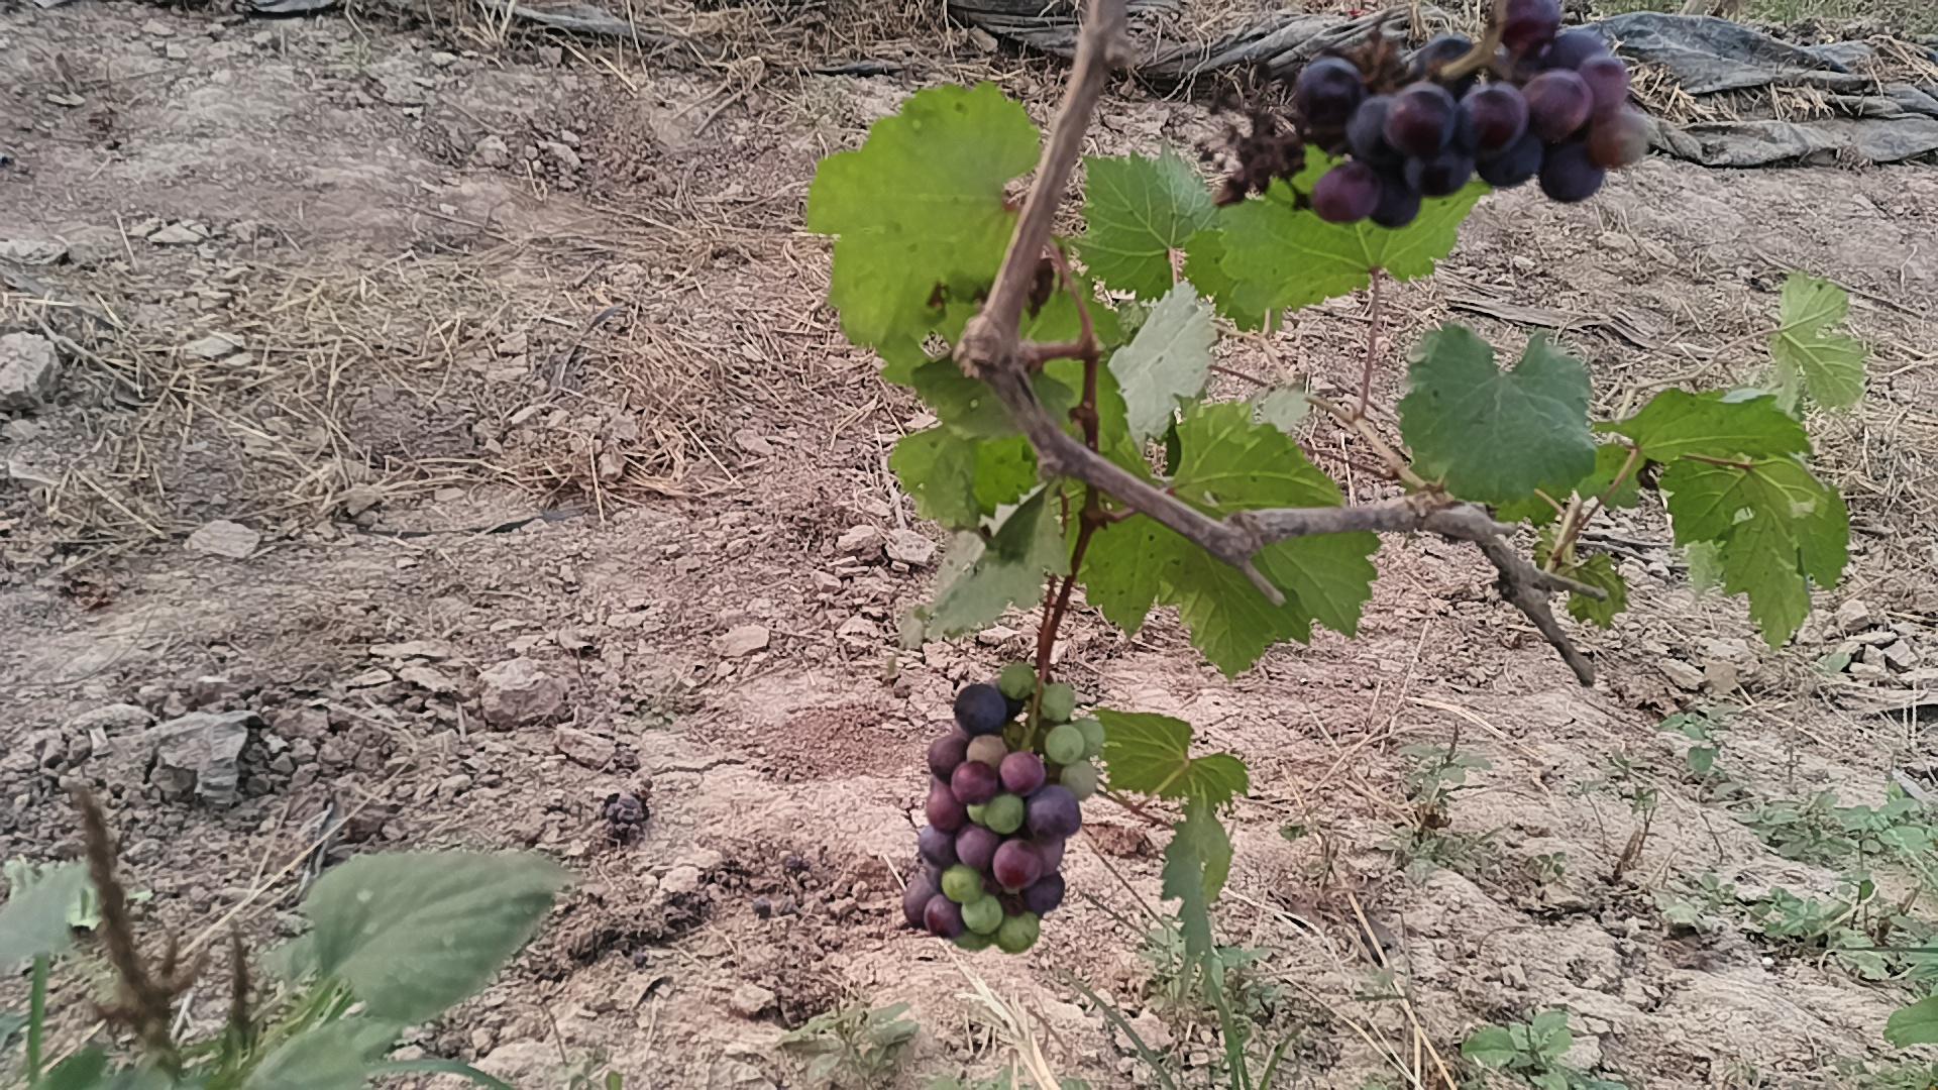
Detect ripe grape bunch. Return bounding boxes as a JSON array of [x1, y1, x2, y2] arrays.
[[1214, 0, 1648, 228]]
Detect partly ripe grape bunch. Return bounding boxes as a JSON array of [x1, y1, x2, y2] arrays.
[[903, 663, 1101, 951]]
